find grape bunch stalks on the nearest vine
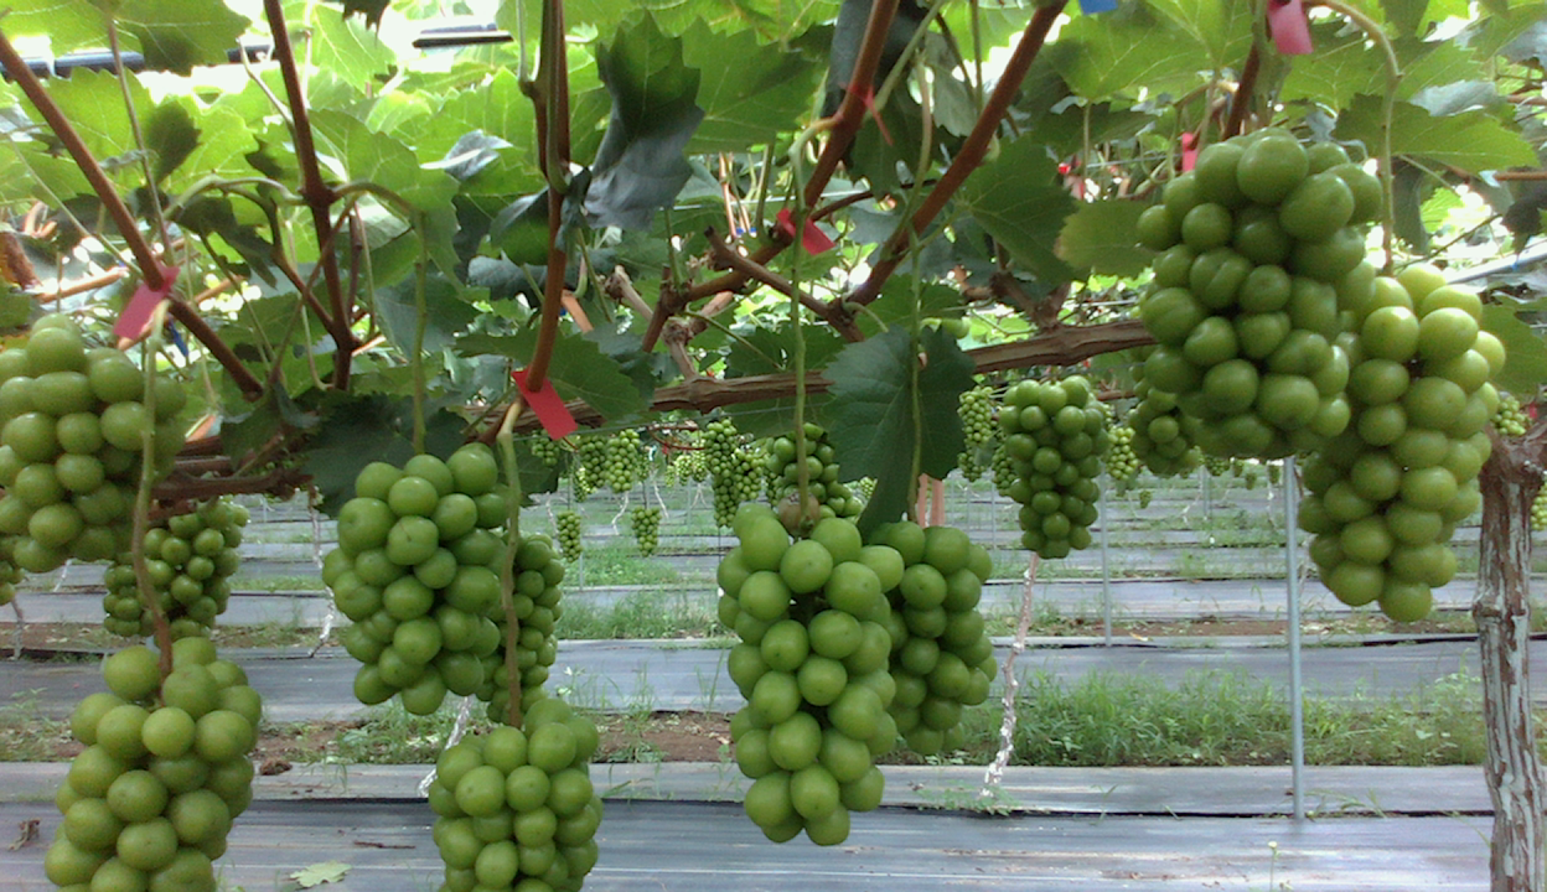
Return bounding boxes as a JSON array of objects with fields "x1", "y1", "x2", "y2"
[
  {"x1": 904, "y1": 221, "x2": 922, "y2": 525},
  {"x1": 790, "y1": 116, "x2": 835, "y2": 539},
  {"x1": 133, "y1": 300, "x2": 172, "y2": 702},
  {"x1": 335, "y1": 182, "x2": 426, "y2": 456},
  {"x1": 1324, "y1": 0, "x2": 1399, "y2": 276},
  {"x1": 55, "y1": 251, "x2": 63, "y2": 312},
  {"x1": 1253, "y1": 1, "x2": 1271, "y2": 130},
  {"x1": 498, "y1": 395, "x2": 524, "y2": 730}
]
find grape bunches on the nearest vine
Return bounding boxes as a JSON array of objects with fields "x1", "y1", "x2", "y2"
[
  {"x1": 871, "y1": 522, "x2": 997, "y2": 759},
  {"x1": 1135, "y1": 128, "x2": 1382, "y2": 460},
  {"x1": 715, "y1": 492, "x2": 902, "y2": 845},
  {"x1": 429, "y1": 697, "x2": 601, "y2": 891},
  {"x1": 43, "y1": 636, "x2": 263, "y2": 891},
  {"x1": 0, "y1": 312, "x2": 187, "y2": 572},
  {"x1": 1295, "y1": 263, "x2": 1506, "y2": 626},
  {"x1": 320, "y1": 442, "x2": 511, "y2": 715}
]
